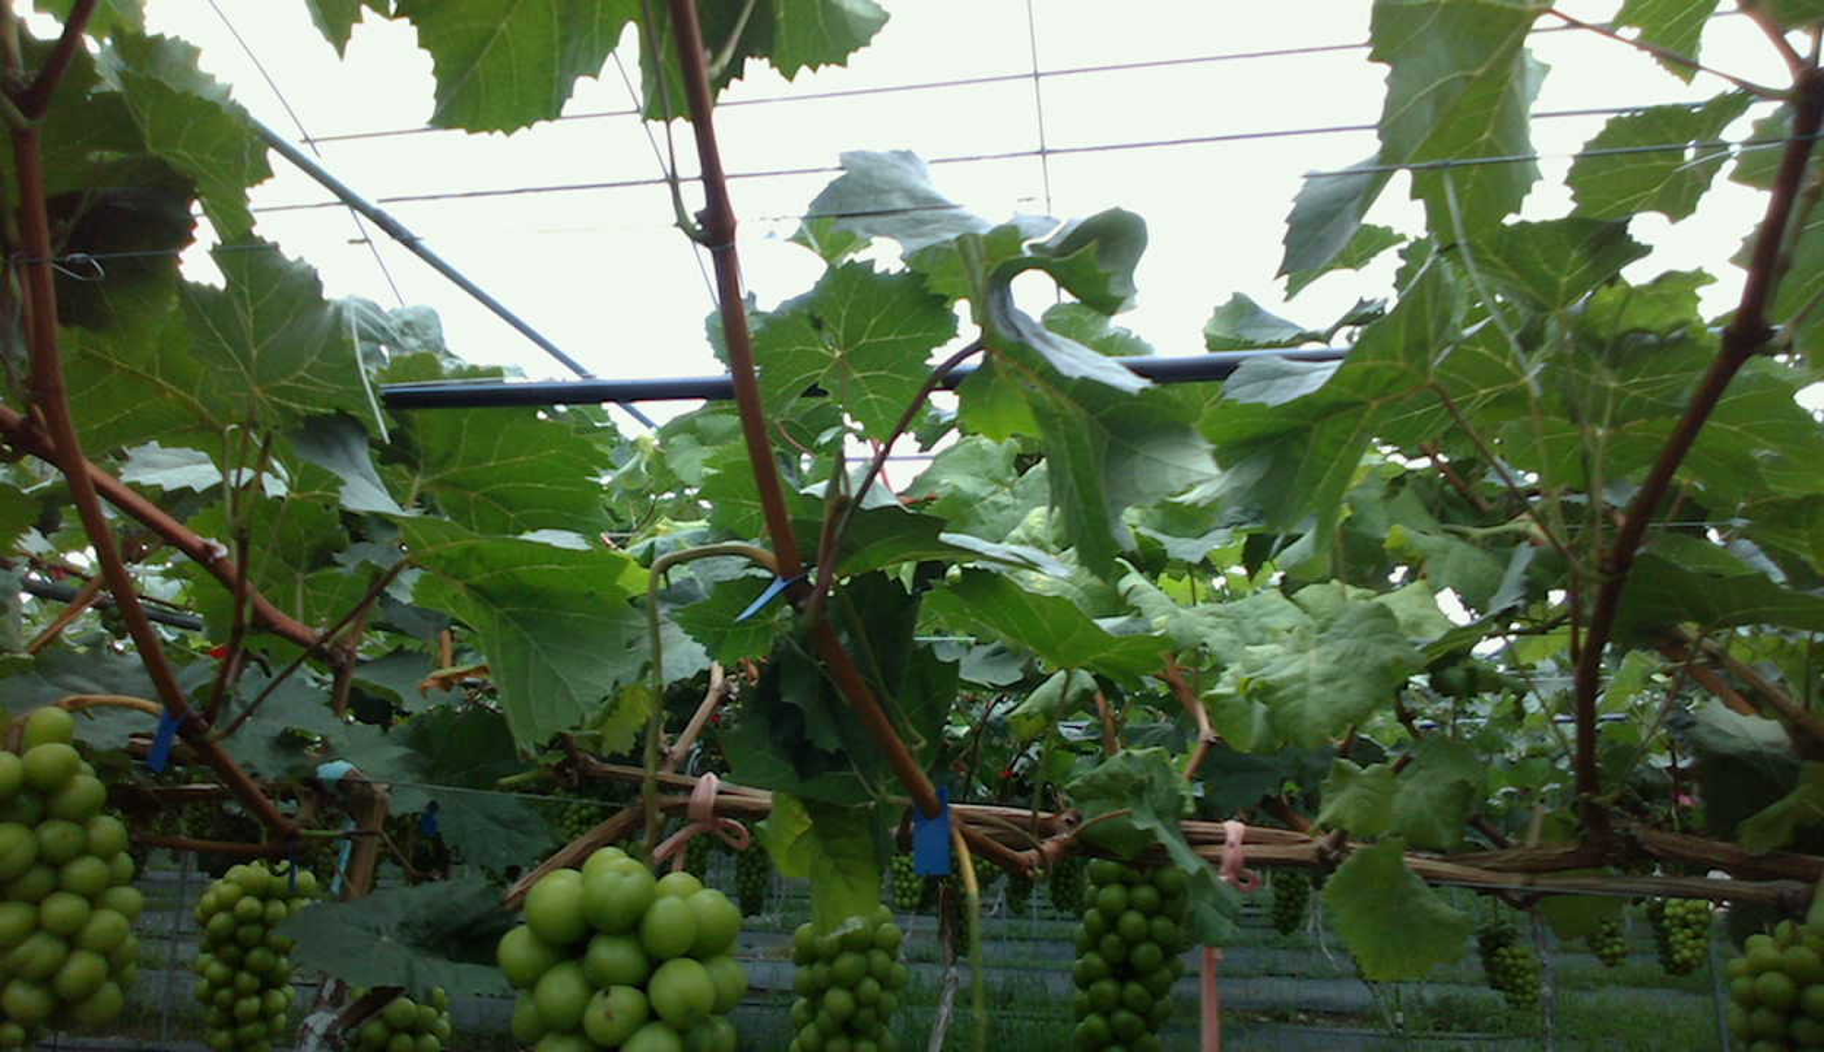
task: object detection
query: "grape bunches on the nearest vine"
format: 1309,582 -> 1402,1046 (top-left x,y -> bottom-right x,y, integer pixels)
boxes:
0,706 -> 145,1048
497,845 -> 748,1051
1726,919 -> 1823,1051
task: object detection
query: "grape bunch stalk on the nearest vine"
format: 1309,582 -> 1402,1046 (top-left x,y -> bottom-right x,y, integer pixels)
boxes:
636,546 -> 779,869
